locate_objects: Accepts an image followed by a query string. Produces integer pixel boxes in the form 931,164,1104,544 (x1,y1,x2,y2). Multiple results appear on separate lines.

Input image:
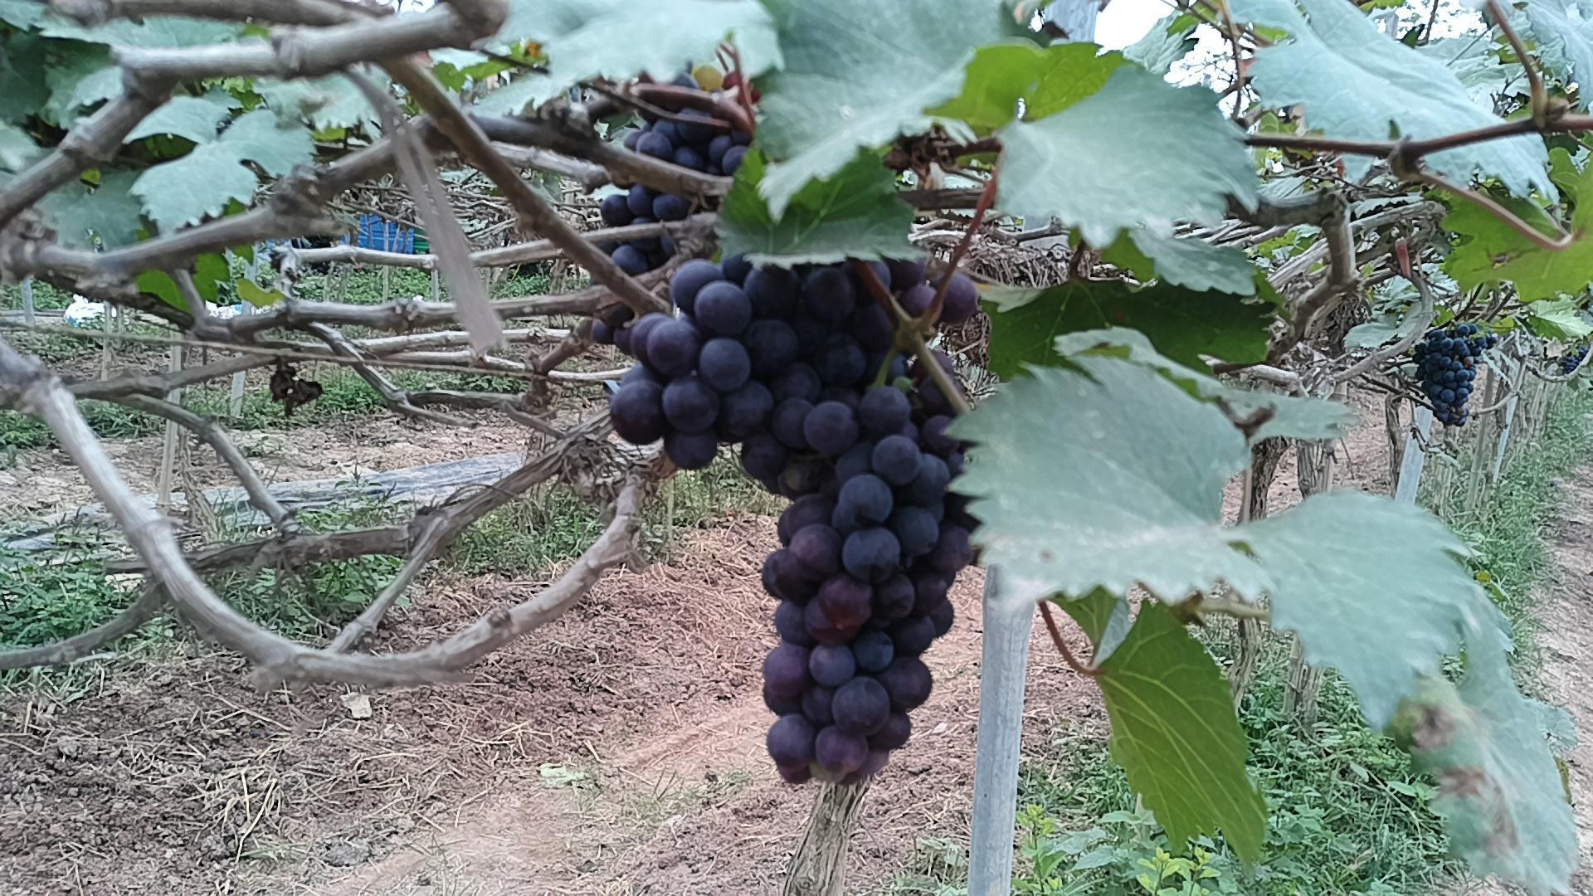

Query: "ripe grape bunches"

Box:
763,348,982,785
1413,323,1497,426
611,253,978,499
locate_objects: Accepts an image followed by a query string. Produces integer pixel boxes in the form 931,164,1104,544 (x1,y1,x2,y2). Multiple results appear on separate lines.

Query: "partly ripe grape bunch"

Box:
587,65,762,356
